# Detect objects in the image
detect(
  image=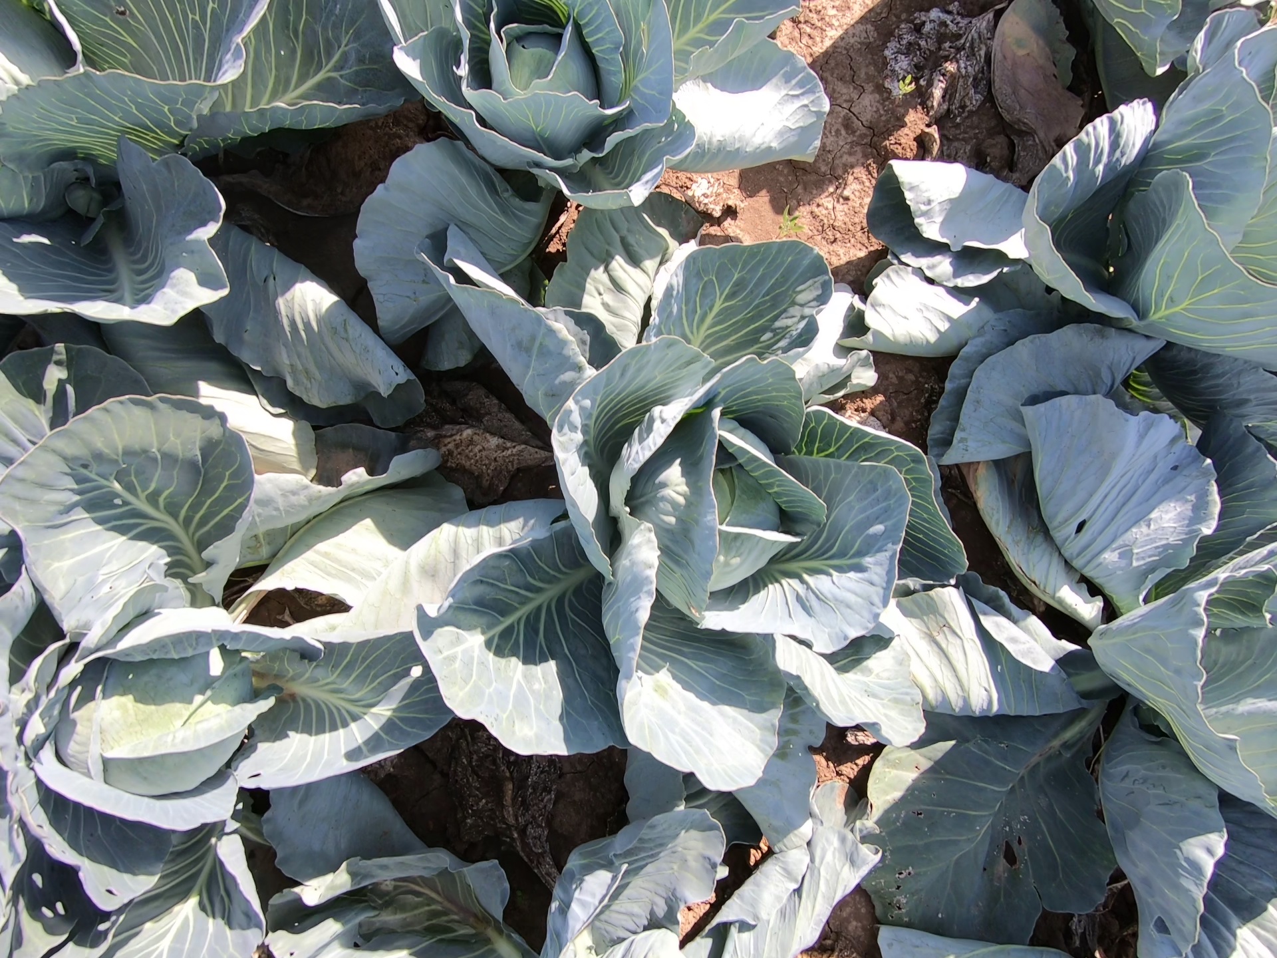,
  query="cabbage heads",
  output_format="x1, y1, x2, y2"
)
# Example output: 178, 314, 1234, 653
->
633, 427, 786, 592
497, 31, 593, 135
51, 615, 253, 796
3, 7, 85, 180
